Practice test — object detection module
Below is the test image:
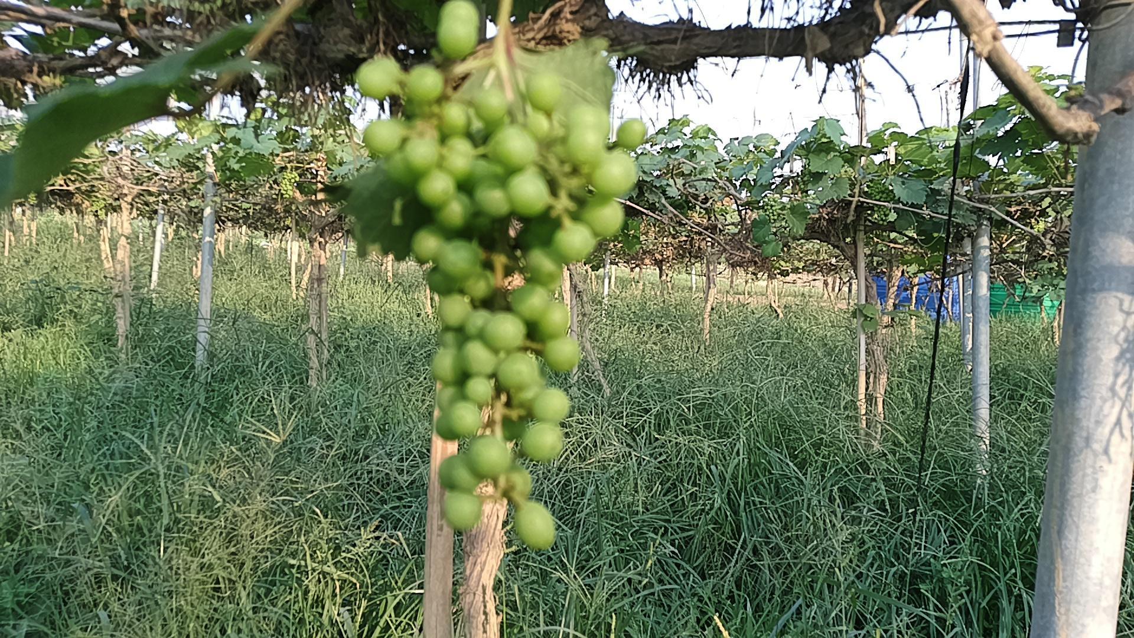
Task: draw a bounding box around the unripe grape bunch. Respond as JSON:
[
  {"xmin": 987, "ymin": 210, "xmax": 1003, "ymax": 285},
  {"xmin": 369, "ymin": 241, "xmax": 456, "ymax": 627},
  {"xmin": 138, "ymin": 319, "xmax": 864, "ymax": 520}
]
[{"xmin": 347, "ymin": 0, "xmax": 643, "ymax": 549}]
